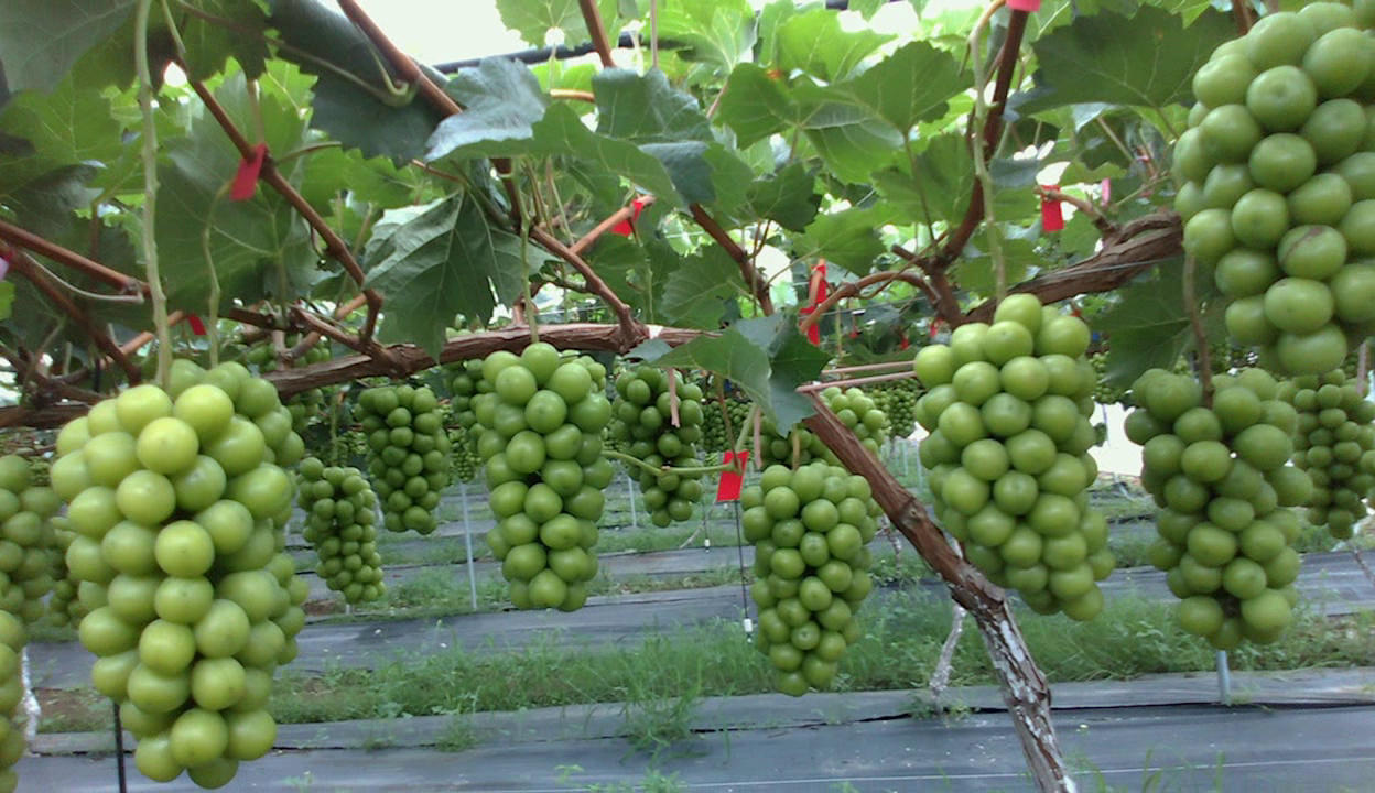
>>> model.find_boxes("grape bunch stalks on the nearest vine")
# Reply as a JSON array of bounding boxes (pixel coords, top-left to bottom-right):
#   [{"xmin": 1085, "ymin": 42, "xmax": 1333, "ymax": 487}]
[
  {"xmin": 1180, "ymin": 253, "xmax": 1215, "ymax": 409},
  {"xmin": 203, "ymin": 178, "xmax": 232, "ymax": 368},
  {"xmin": 968, "ymin": 0, "xmax": 1006, "ymax": 306},
  {"xmin": 510, "ymin": 157, "xmax": 539, "ymax": 343},
  {"xmin": 139, "ymin": 0, "xmax": 170, "ymax": 389},
  {"xmin": 1262, "ymin": 1, "xmax": 1277, "ymax": 10},
  {"xmin": 789, "ymin": 426, "xmax": 800, "ymax": 471}
]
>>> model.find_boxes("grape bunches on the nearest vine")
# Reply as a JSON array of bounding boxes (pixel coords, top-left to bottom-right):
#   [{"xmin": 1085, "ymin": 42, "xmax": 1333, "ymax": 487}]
[
  {"xmin": 172, "ymin": 360, "xmax": 307, "ymax": 663},
  {"xmin": 1125, "ymin": 367, "xmax": 1310, "ymax": 651},
  {"xmin": 740, "ymin": 464, "xmax": 879, "ymax": 697},
  {"xmin": 913, "ymin": 292, "xmax": 1116, "ymax": 622},
  {"xmin": 1171, "ymin": 1, "xmax": 1374, "ymax": 376},
  {"xmin": 477, "ymin": 343, "xmax": 614, "ymax": 613},
  {"xmin": 47, "ymin": 384, "xmax": 292, "ymax": 789}
]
